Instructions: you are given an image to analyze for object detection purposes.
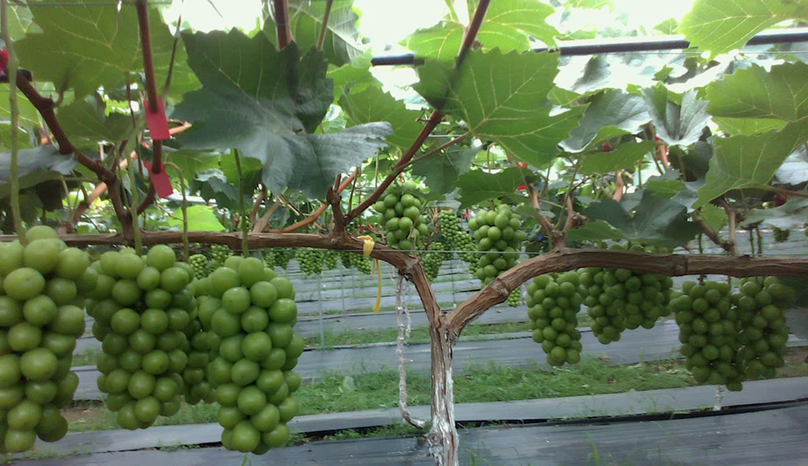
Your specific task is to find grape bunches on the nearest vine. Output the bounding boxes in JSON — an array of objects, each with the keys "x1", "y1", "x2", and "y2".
[
  {"x1": 84, "y1": 245, "x2": 196, "y2": 430},
  {"x1": 199, "y1": 256, "x2": 304, "y2": 455},
  {"x1": 0, "y1": 227, "x2": 99, "y2": 454}
]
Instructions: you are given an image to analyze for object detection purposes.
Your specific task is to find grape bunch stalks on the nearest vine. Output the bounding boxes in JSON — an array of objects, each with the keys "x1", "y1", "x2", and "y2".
[
  {"x1": 125, "y1": 115, "x2": 147, "y2": 256},
  {"x1": 163, "y1": 162, "x2": 188, "y2": 261},
  {"x1": 234, "y1": 148, "x2": 249, "y2": 257},
  {"x1": 1, "y1": 3, "x2": 28, "y2": 246}
]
